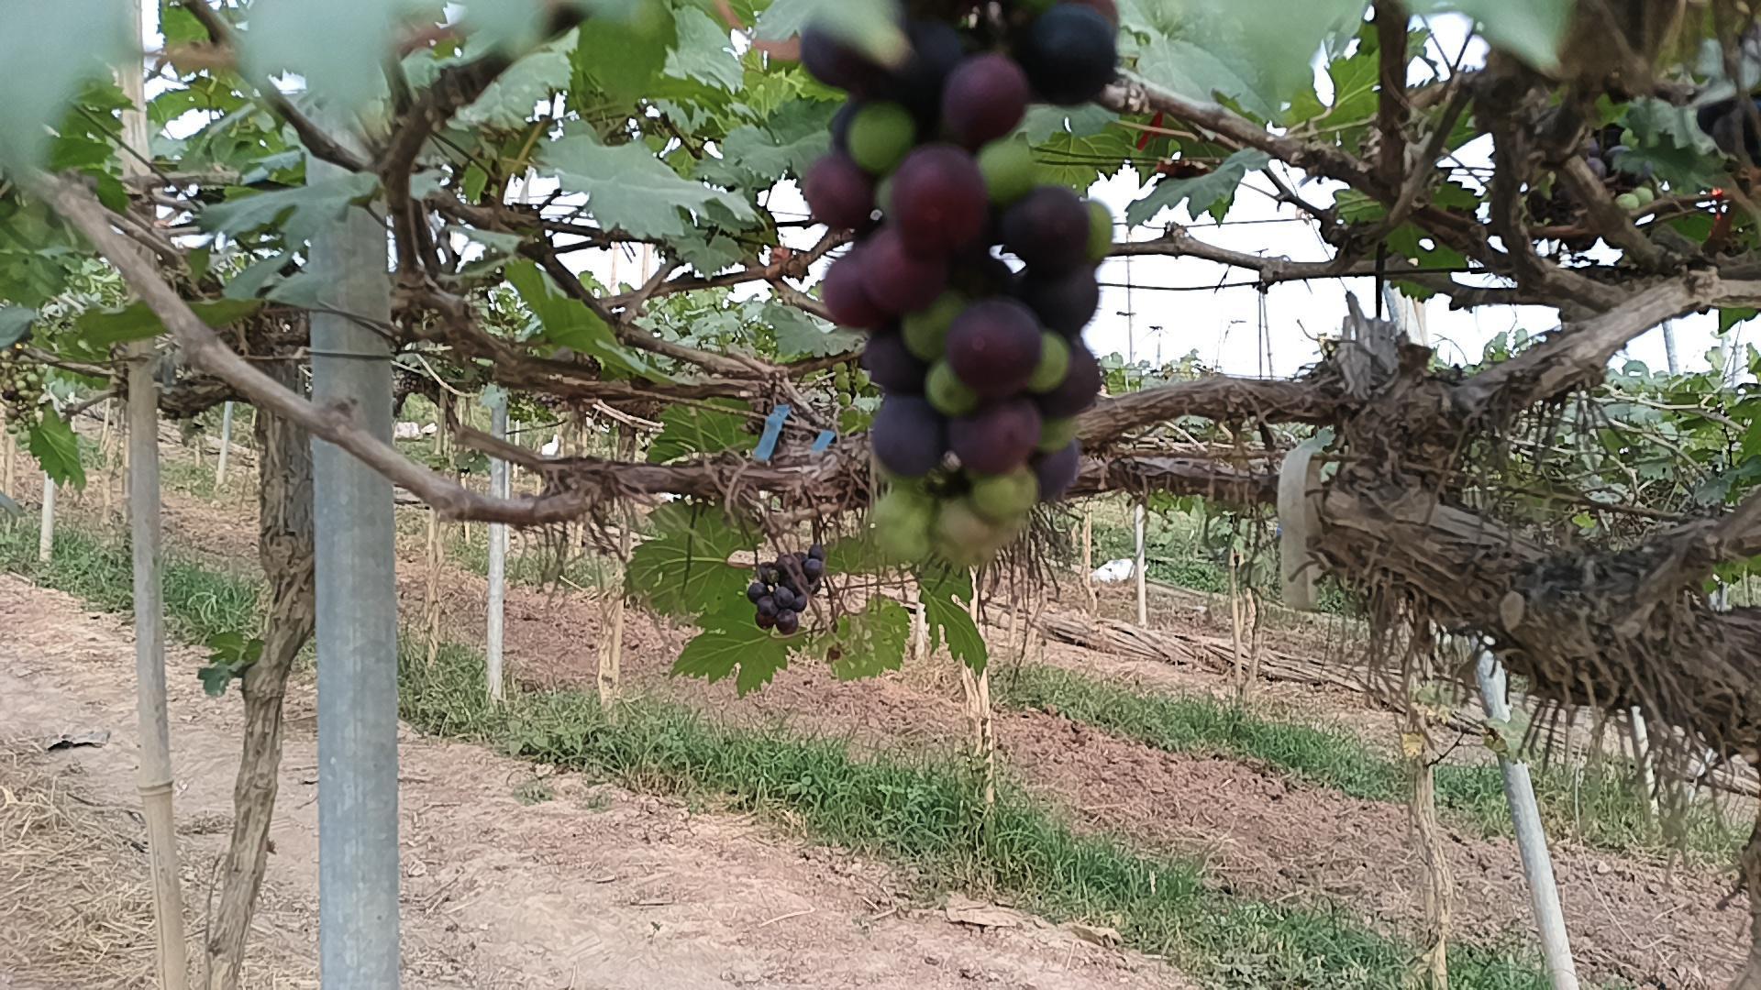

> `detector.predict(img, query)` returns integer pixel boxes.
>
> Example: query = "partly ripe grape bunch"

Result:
[801,0,1116,564]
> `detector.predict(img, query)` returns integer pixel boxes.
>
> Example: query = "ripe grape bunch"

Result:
[745,544,825,635]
